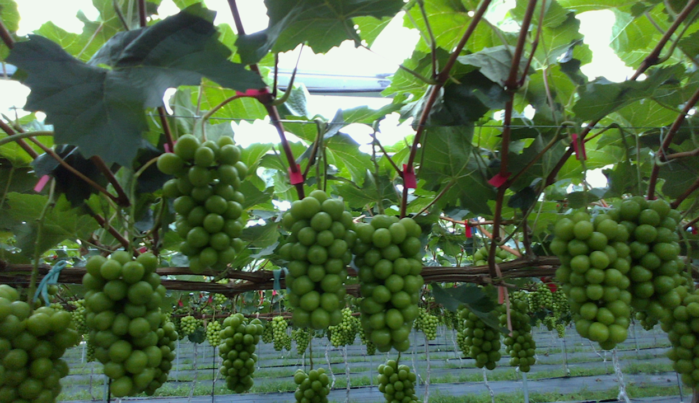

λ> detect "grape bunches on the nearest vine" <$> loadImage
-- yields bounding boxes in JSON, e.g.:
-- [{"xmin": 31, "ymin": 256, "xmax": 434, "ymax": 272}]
[
  {"xmin": 278, "ymin": 189, "xmax": 357, "ymax": 330},
  {"xmin": 605, "ymin": 196, "xmax": 688, "ymax": 321},
  {"xmin": 660, "ymin": 289, "xmax": 698, "ymax": 396},
  {"xmin": 350, "ymin": 213, "xmax": 424, "ymax": 353},
  {"xmin": 156, "ymin": 134, "xmax": 248, "ymax": 274},
  {"xmin": 550, "ymin": 212, "xmax": 631, "ymax": 351},
  {"xmin": 82, "ymin": 251, "xmax": 166, "ymax": 398},
  {"xmin": 0, "ymin": 284, "xmax": 79, "ymax": 402}
]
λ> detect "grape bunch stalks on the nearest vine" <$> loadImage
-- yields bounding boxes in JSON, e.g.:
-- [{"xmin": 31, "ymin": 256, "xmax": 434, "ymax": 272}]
[
  {"xmin": 677, "ymin": 223, "xmax": 695, "ymax": 294},
  {"xmin": 26, "ymin": 177, "xmax": 56, "ymax": 303},
  {"xmin": 127, "ymin": 156, "xmax": 158, "ymax": 260},
  {"xmin": 315, "ymin": 119, "xmax": 324, "ymax": 189},
  {"xmin": 611, "ymin": 123, "xmax": 637, "ymax": 197},
  {"xmin": 562, "ymin": 121, "xmax": 589, "ymax": 213},
  {"xmin": 201, "ymin": 94, "xmax": 240, "ymax": 143},
  {"xmin": 370, "ymin": 139, "xmax": 385, "ymax": 214}
]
